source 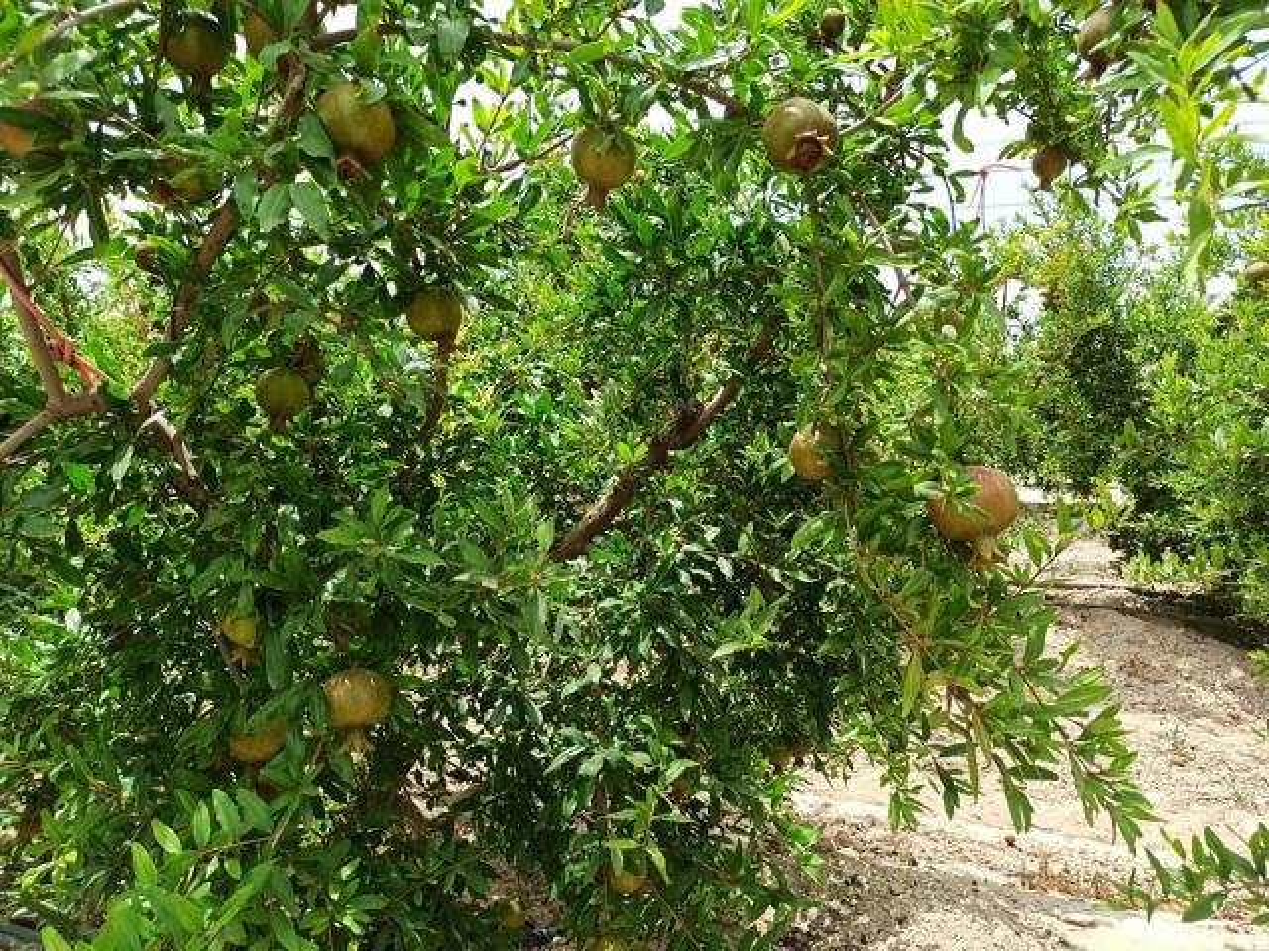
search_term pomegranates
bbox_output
[254,365,309,436]
[165,14,226,99]
[0,125,34,160]
[317,83,397,186]
[135,238,155,271]
[759,97,841,174]
[823,8,845,30]
[928,466,1019,571]
[1031,147,1069,194]
[218,614,266,672]
[609,872,644,896]
[228,721,288,763]
[244,10,280,53]
[1077,6,1126,81]
[406,293,462,359]
[569,129,636,212]
[581,933,631,951]
[155,157,210,198]
[321,666,393,765]
[789,420,843,485]
[496,898,525,929]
